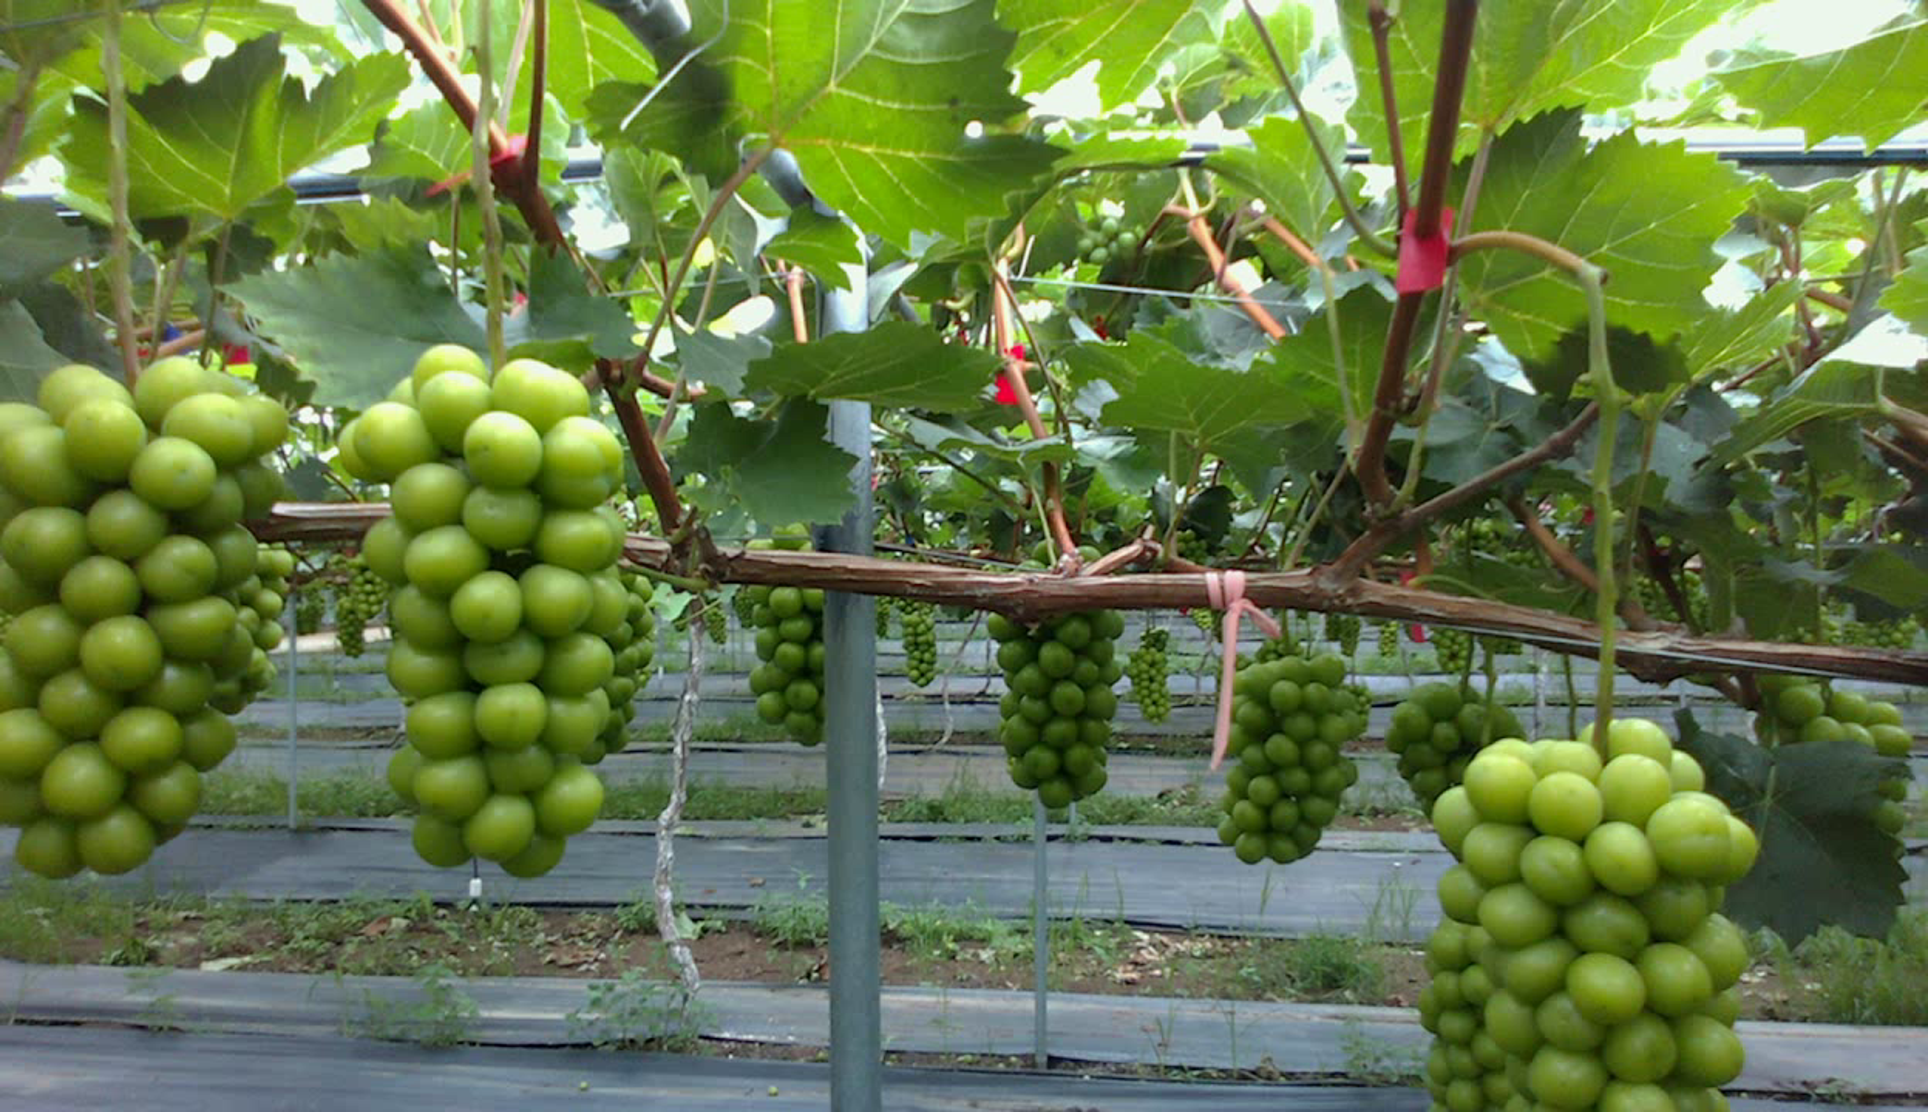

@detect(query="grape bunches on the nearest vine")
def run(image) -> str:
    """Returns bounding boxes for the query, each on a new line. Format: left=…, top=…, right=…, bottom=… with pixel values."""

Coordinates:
left=0, top=355, right=290, bottom=882
left=337, top=346, right=630, bottom=877
left=1418, top=916, right=1514, bottom=1110
left=1434, top=717, right=1758, bottom=1109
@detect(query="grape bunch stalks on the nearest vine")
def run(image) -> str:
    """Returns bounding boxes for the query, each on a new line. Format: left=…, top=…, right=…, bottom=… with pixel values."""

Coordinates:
left=471, top=0, right=504, bottom=375
left=102, top=2, right=137, bottom=389
left=1448, top=229, right=1617, bottom=764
